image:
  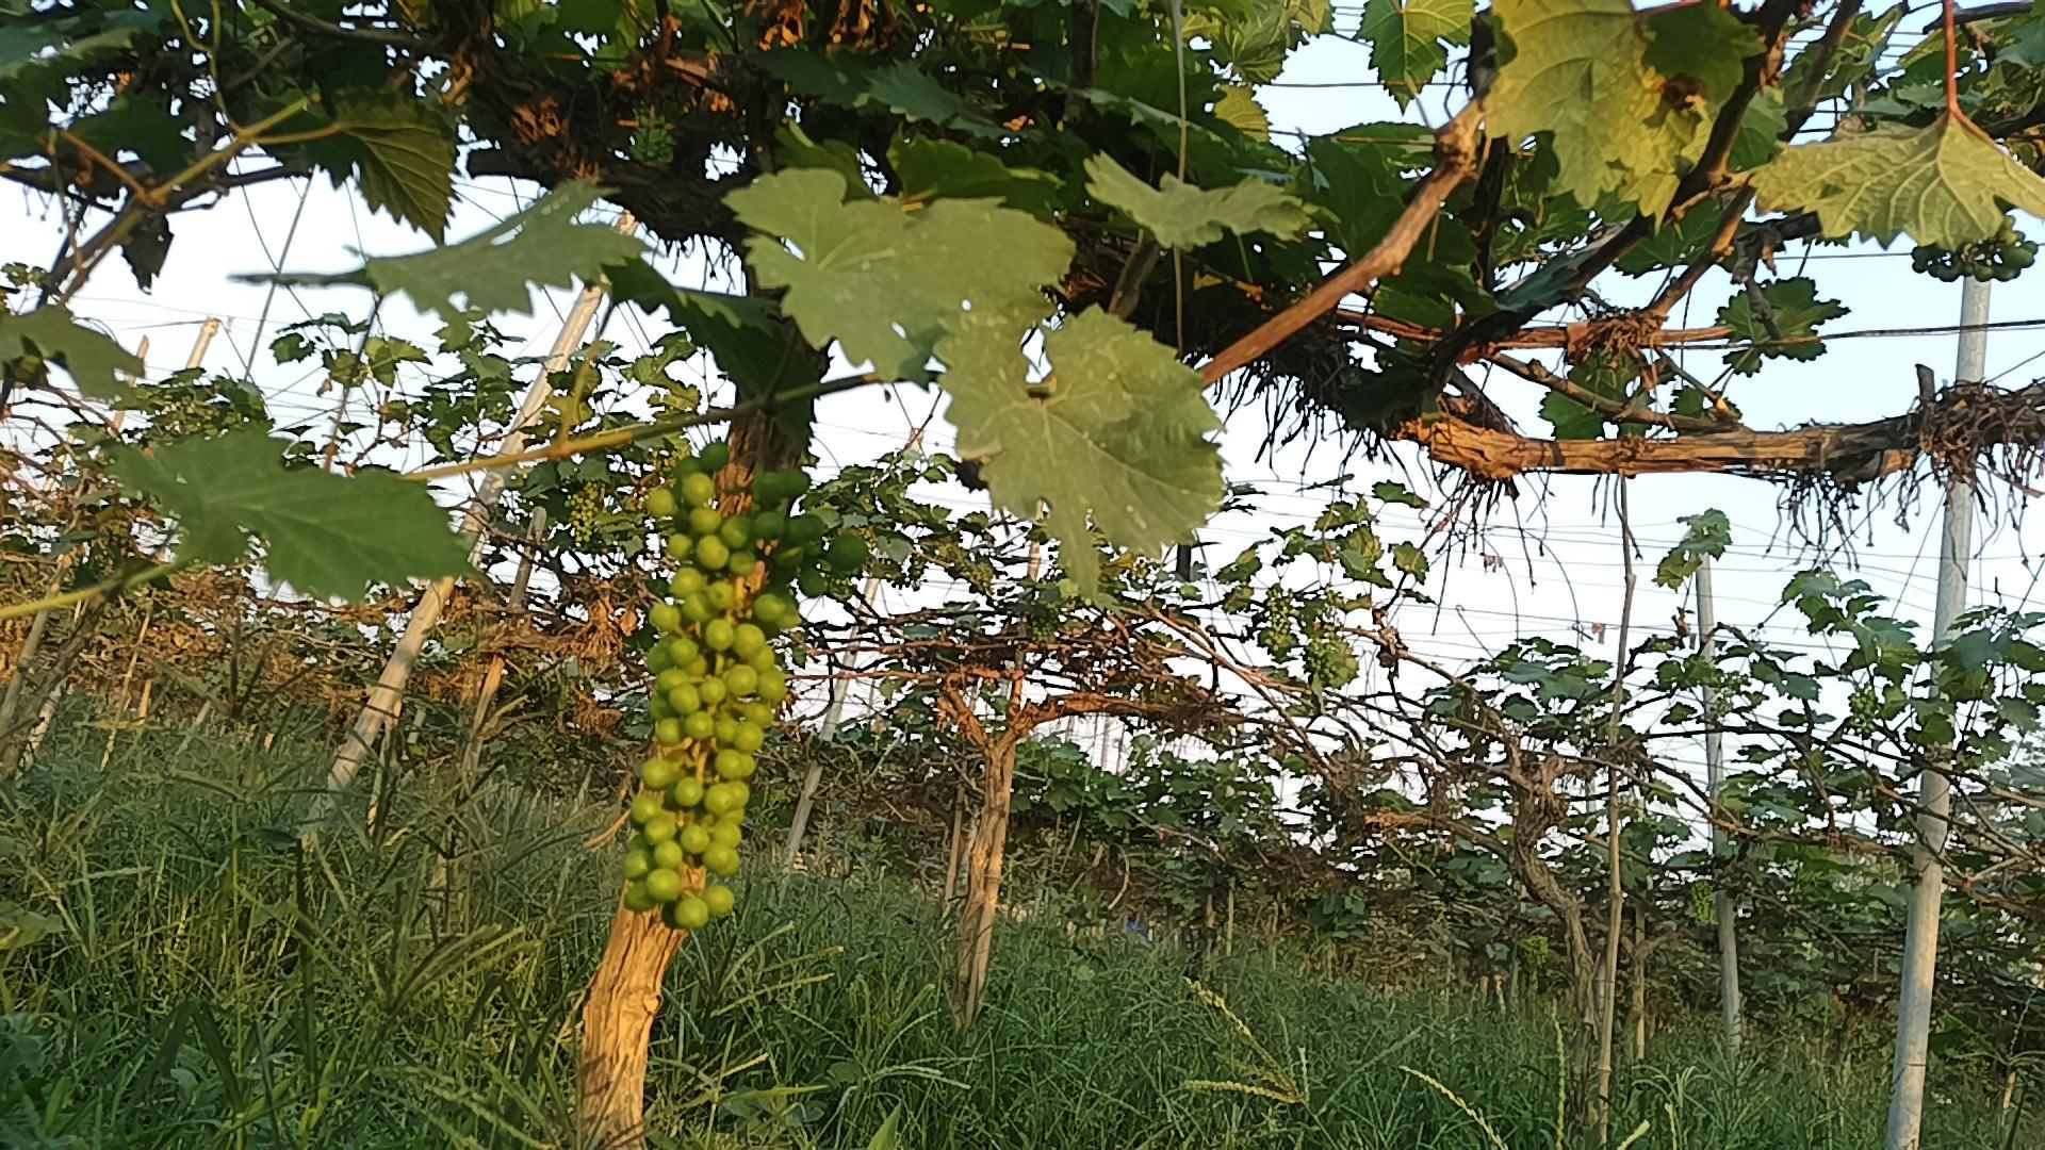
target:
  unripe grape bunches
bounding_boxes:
[624,445,867,929]
[562,481,605,543]
[1912,216,2038,281]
